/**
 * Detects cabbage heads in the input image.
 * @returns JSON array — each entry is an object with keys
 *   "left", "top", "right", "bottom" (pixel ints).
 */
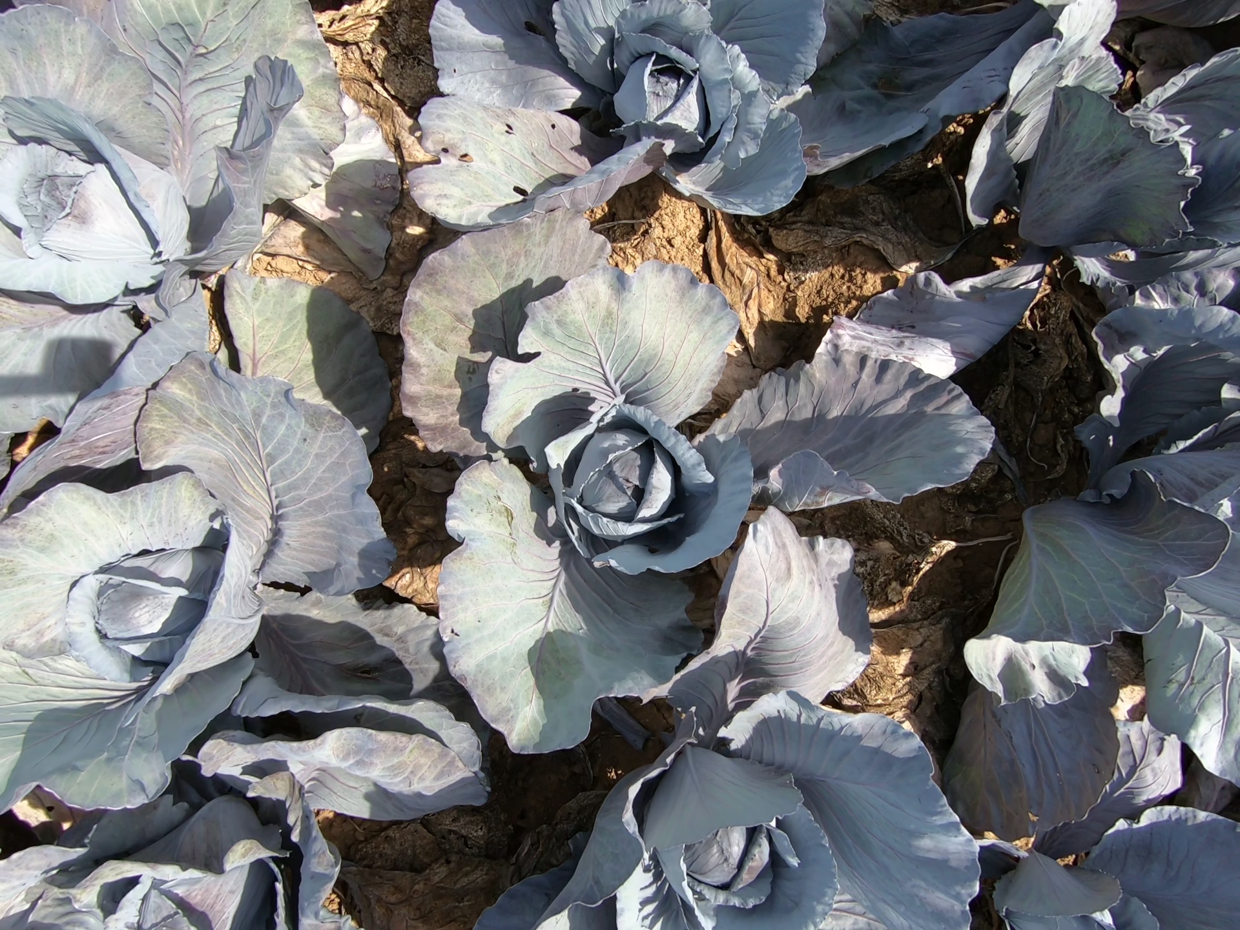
[
  {"left": 127, "top": 812, "right": 273, "bottom": 927},
  {"left": 25, "top": 165, "right": 172, "bottom": 265},
  {"left": 619, "top": 57, "right": 716, "bottom": 141},
  {"left": 93, "top": 546, "right": 255, "bottom": 666},
  {"left": 1078, "top": 113, "right": 1195, "bottom": 237},
  {"left": 662, "top": 761, "right": 778, "bottom": 898},
  {"left": 580, "top": 429, "right": 679, "bottom": 533}
]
